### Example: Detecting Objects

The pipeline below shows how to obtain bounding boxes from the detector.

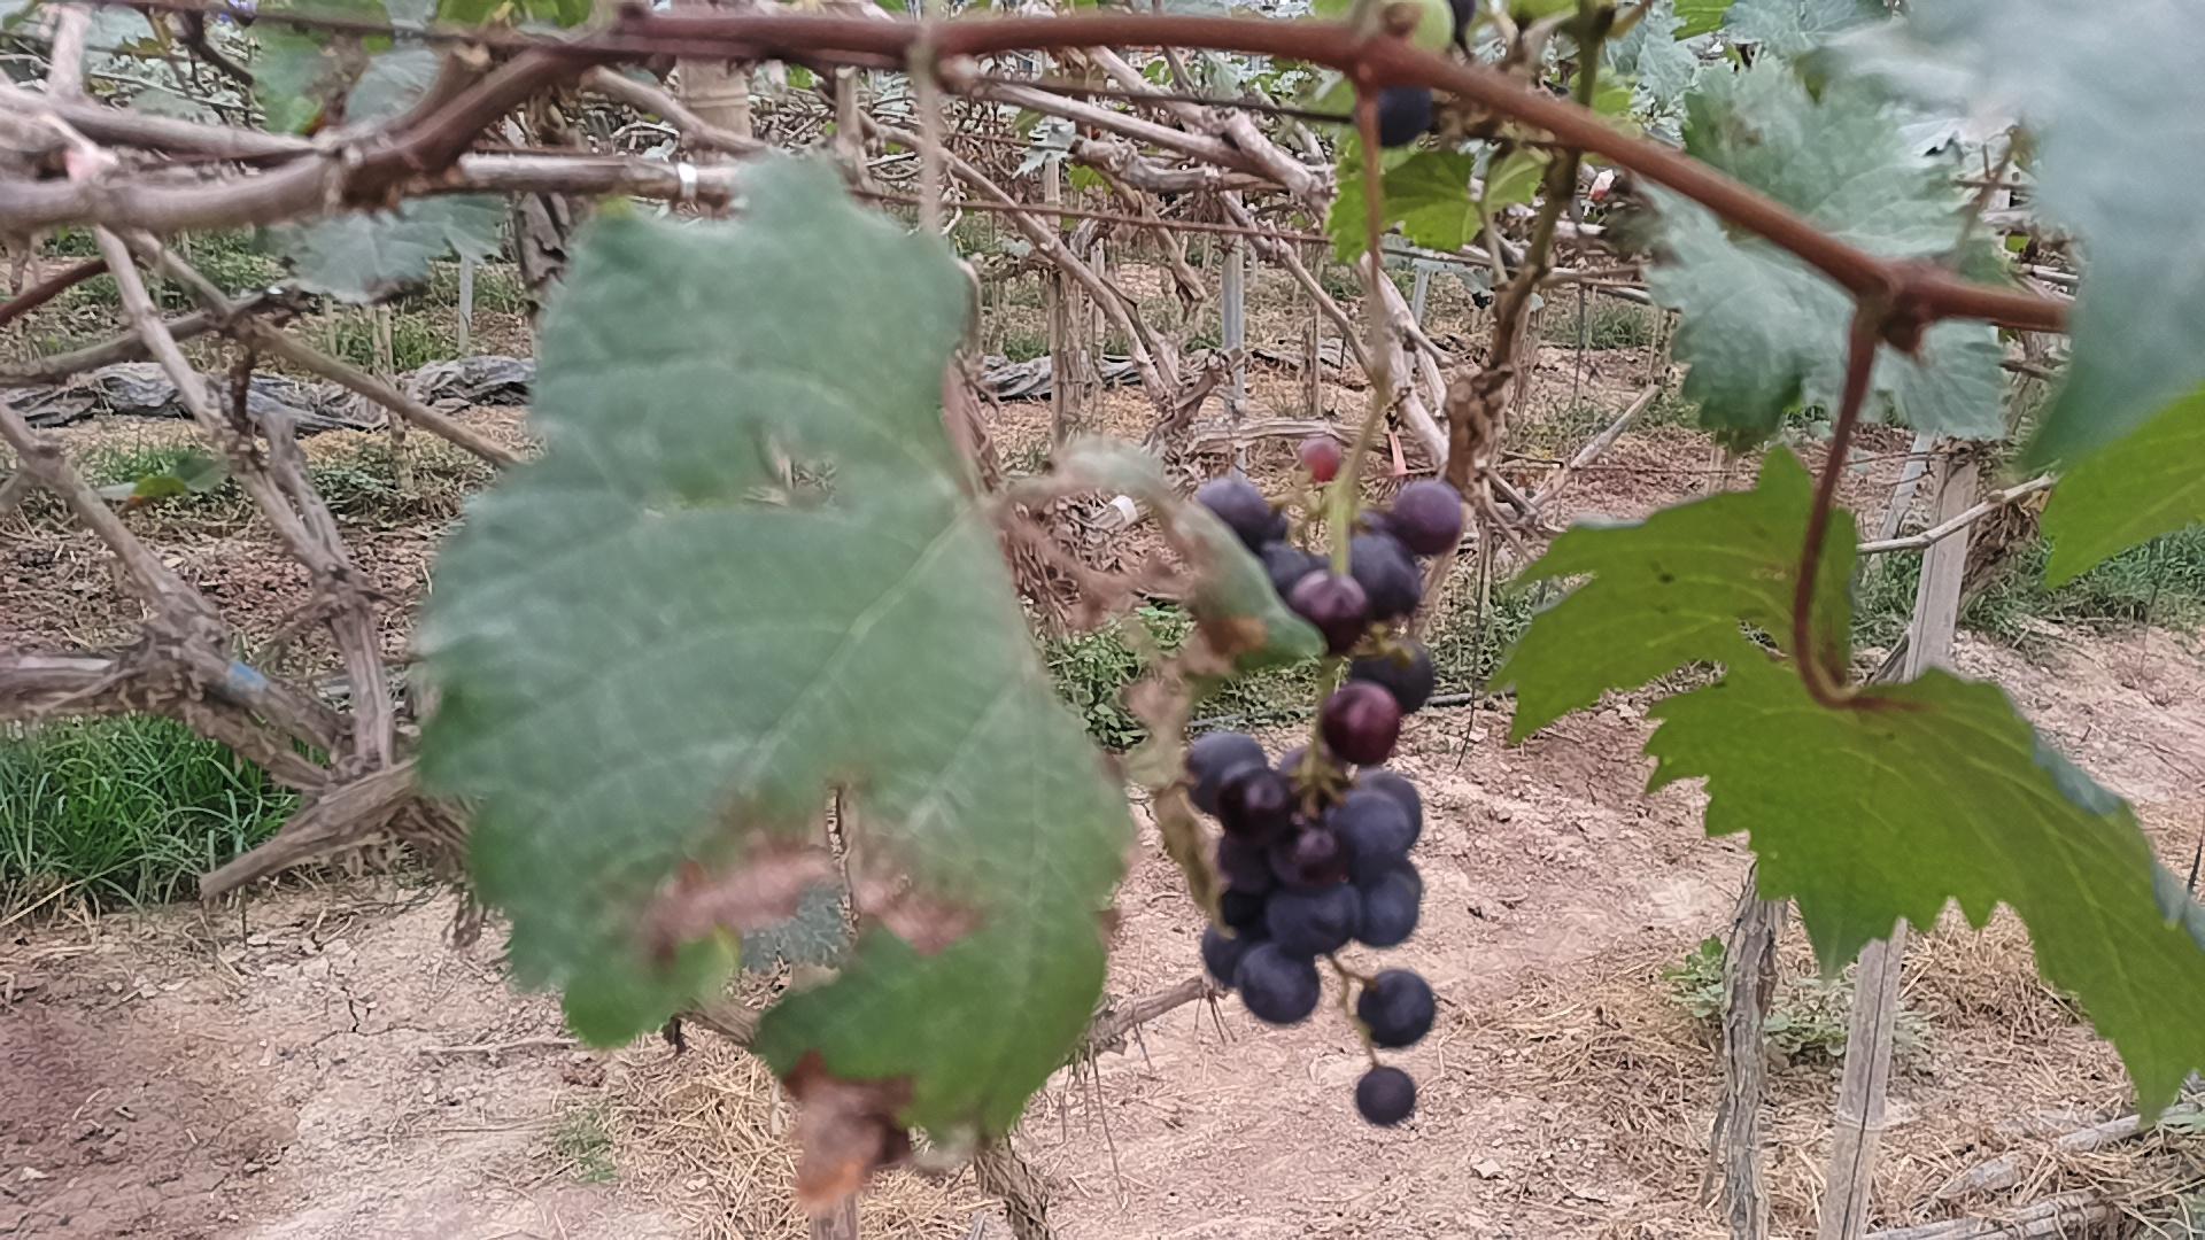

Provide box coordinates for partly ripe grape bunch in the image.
[1185,476,1463,1125]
